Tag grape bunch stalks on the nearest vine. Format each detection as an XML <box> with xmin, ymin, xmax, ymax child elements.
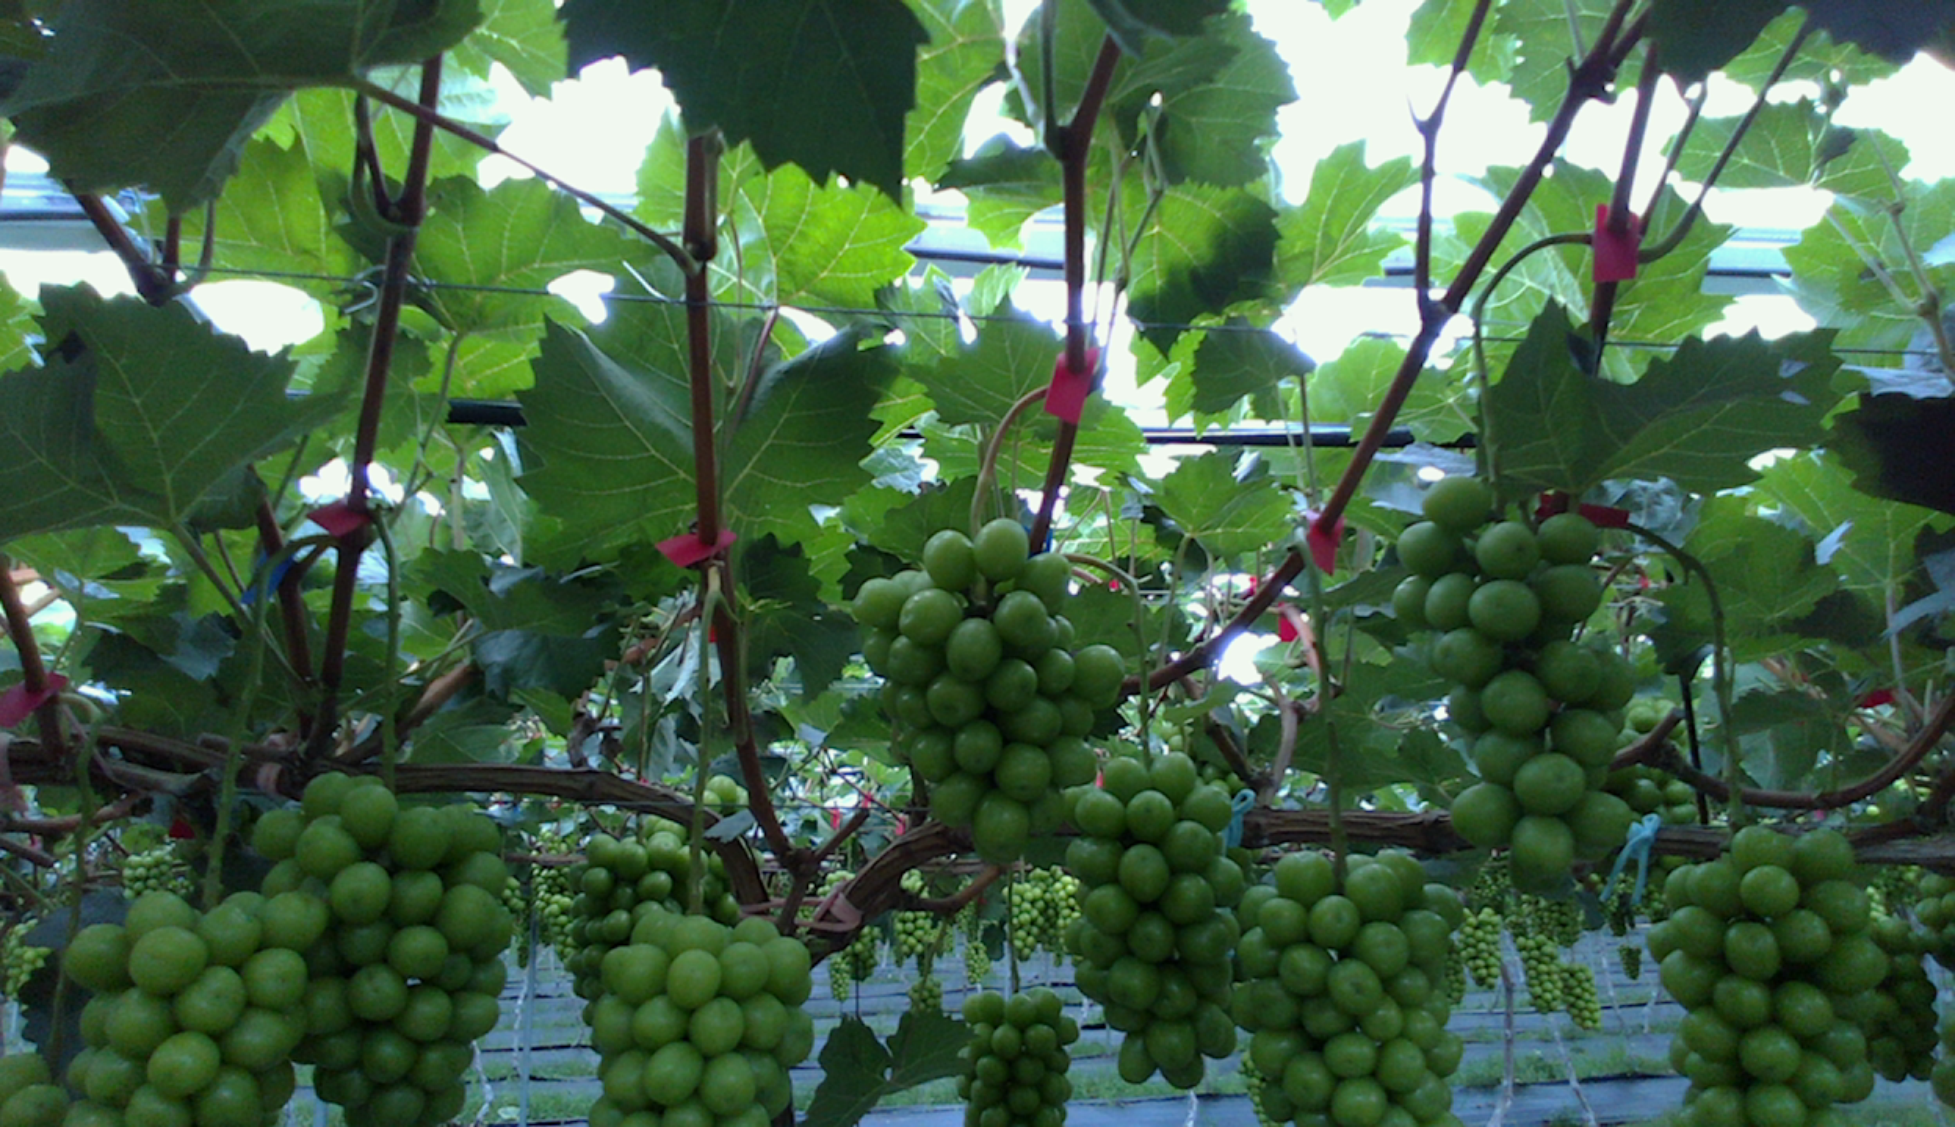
<box><xmin>42</xmin><ymin>692</ymin><xmax>102</xmax><ymax>1080</ymax></box>
<box><xmin>370</xmin><ymin>504</ymin><xmax>401</xmax><ymax>795</ymax></box>
<box><xmin>968</xmin><ymin>385</ymin><xmax>1050</xmax><ymax>538</ymax></box>
<box><xmin>1292</xmin><ymin>527</ymin><xmax>1347</xmax><ymax>894</ymax></box>
<box><xmin>1626</xmin><ymin>523</ymin><xmax>1747</xmax><ymax>834</ymax></box>
<box><xmin>1065</xmin><ymin>553</ymin><xmax>1151</xmax><ymax>770</ymax></box>
<box><xmin>688</xmin><ymin>567</ymin><xmax>722</xmax><ymax>914</ymax></box>
<box><xmin>1471</xmin><ymin>233</ymin><xmax>1593</xmax><ymax>524</ymax></box>
<box><xmin>201</xmin><ymin>534</ymin><xmax>340</xmax><ymax>914</ymax></box>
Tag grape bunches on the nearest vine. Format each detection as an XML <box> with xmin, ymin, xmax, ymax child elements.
<box><xmin>1231</xmin><ymin>850</ymin><xmax>1466</xmax><ymax>1125</ymax></box>
<box><xmin>586</xmin><ymin>909</ymin><xmax>815</xmax><ymax>1125</ymax></box>
<box><xmin>1062</xmin><ymin>751</ymin><xmax>1244</xmax><ymax>1089</ymax></box>
<box><xmin>1389</xmin><ymin>473</ymin><xmax>1637</xmax><ymax>895</ymax></box>
<box><xmin>1645</xmin><ymin>826</ymin><xmax>1889</xmax><ymax>1125</ymax></box>
<box><xmin>252</xmin><ymin>770</ymin><xmax>514</xmax><ymax>1125</ymax></box>
<box><xmin>851</xmin><ymin>517</ymin><xmax>1125</xmax><ymax>859</ymax></box>
<box><xmin>64</xmin><ymin>891</ymin><xmax>329</xmax><ymax>1125</ymax></box>
<box><xmin>0</xmin><ymin>1052</ymin><xmax>67</xmax><ymax>1125</ymax></box>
